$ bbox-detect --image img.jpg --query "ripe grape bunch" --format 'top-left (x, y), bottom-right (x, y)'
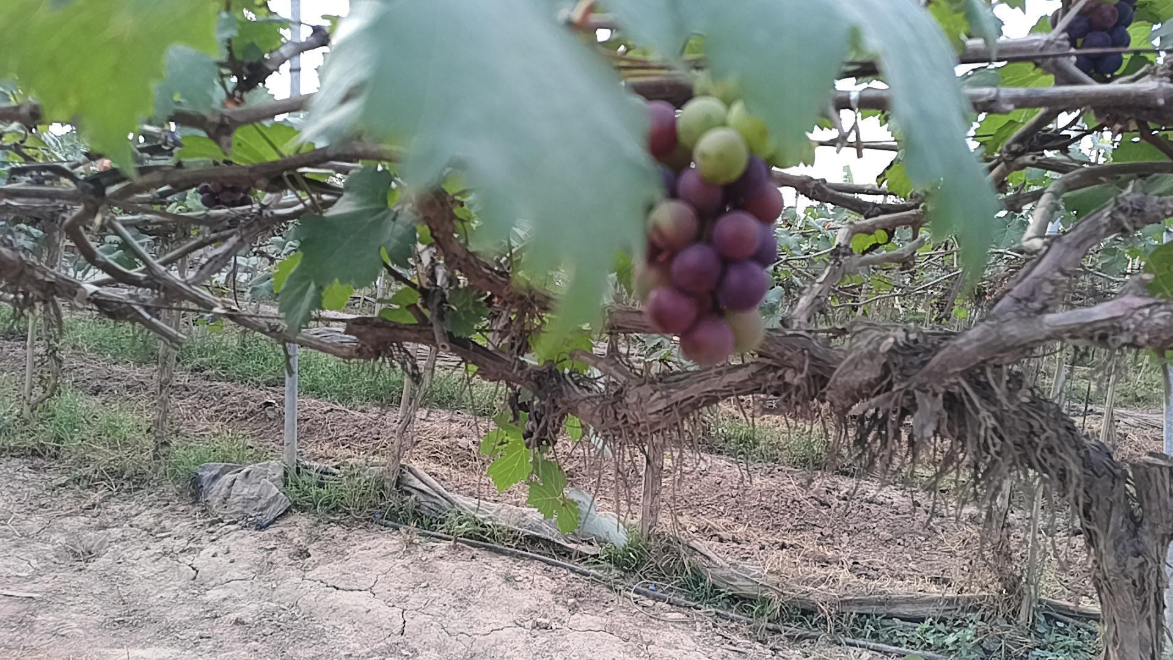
top-left (196, 183), bottom-right (252, 208)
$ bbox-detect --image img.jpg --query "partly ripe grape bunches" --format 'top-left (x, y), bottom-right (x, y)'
top-left (1050, 0), bottom-right (1137, 75)
top-left (630, 73), bottom-right (783, 366)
